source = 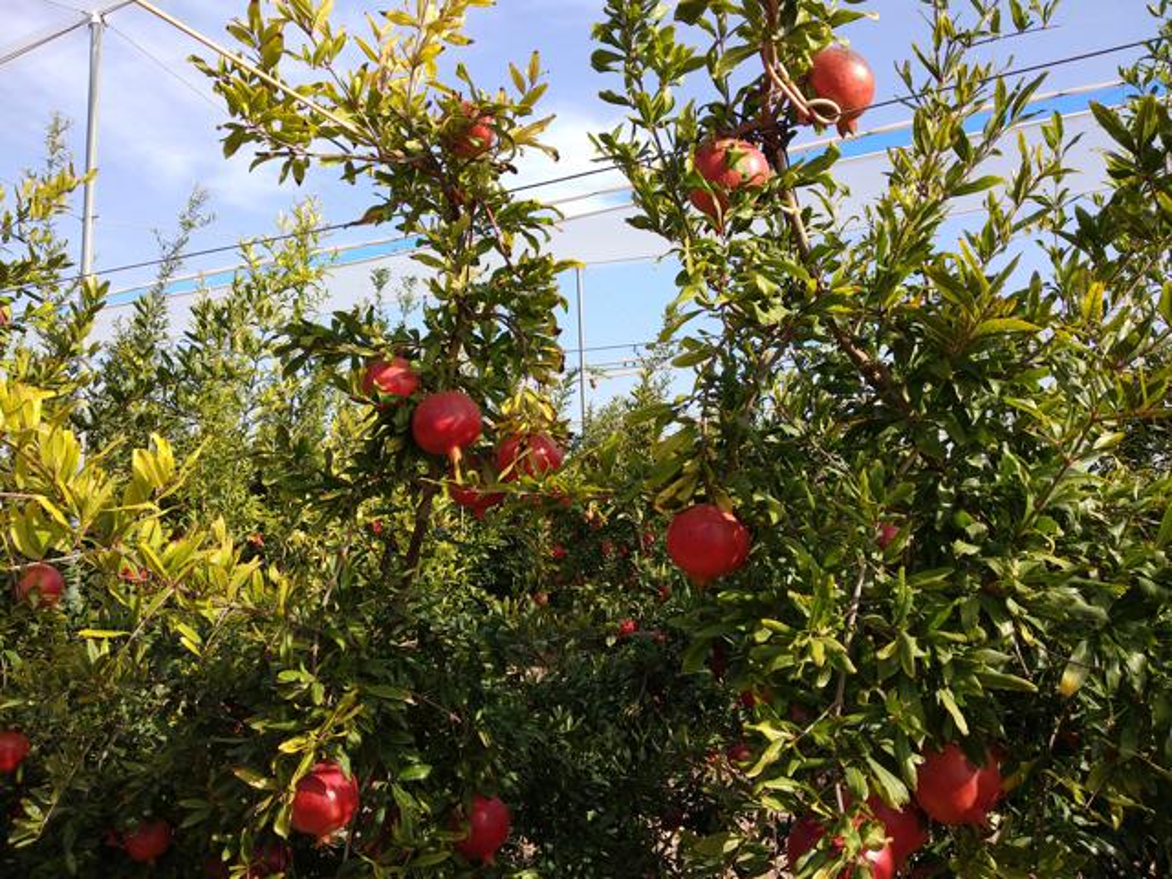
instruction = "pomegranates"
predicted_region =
[123,820,172,863]
[253,848,289,877]
[665,504,751,590]
[456,793,511,866]
[447,115,494,159]
[410,390,483,465]
[493,434,562,485]
[690,137,769,218]
[13,562,64,606]
[806,48,875,137]
[361,355,421,396]
[0,727,29,776]
[293,760,361,850]
[787,789,928,879]
[447,467,505,520]
[914,743,1004,837]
